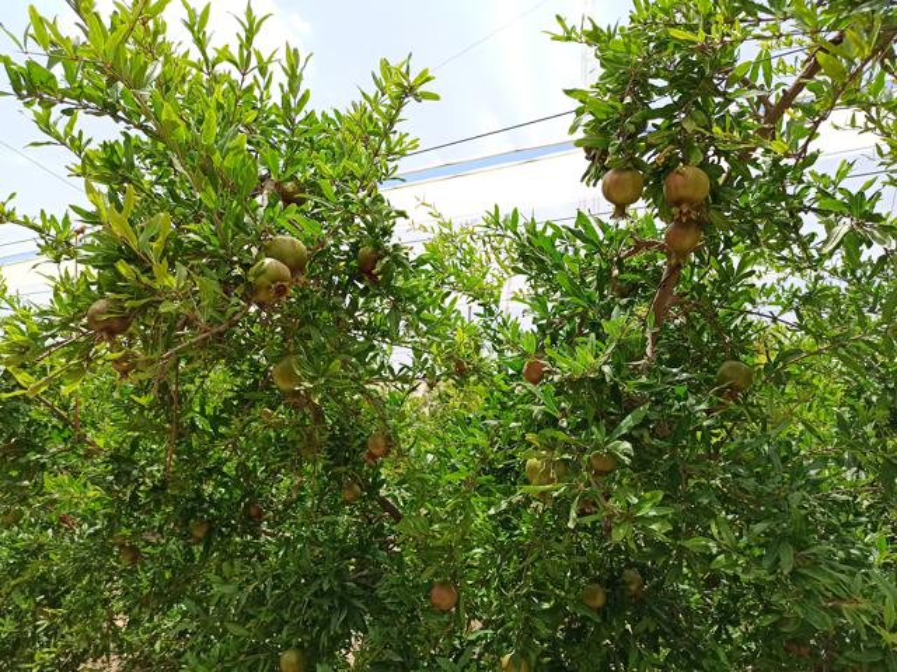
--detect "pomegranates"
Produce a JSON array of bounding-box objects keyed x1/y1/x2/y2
[
  {"x1": 279, "y1": 647, "x2": 318, "y2": 672},
  {"x1": 251, "y1": 258, "x2": 293, "y2": 304},
  {"x1": 263, "y1": 235, "x2": 308, "y2": 284},
  {"x1": 718, "y1": 360, "x2": 754, "y2": 392},
  {"x1": 662, "y1": 221, "x2": 699, "y2": 269},
  {"x1": 662, "y1": 165, "x2": 712, "y2": 221},
  {"x1": 582, "y1": 585, "x2": 607, "y2": 606},
  {"x1": 271, "y1": 357, "x2": 301, "y2": 392},
  {"x1": 589, "y1": 455, "x2": 619, "y2": 470},
  {"x1": 600, "y1": 168, "x2": 643, "y2": 221},
  {"x1": 367, "y1": 431, "x2": 391, "y2": 458},
  {"x1": 85, "y1": 298, "x2": 135, "y2": 342},
  {"x1": 524, "y1": 458, "x2": 566, "y2": 484},
  {"x1": 112, "y1": 350, "x2": 142, "y2": 382},
  {"x1": 278, "y1": 179, "x2": 307, "y2": 209},
  {"x1": 427, "y1": 580, "x2": 460, "y2": 616},
  {"x1": 523, "y1": 360, "x2": 547, "y2": 388},
  {"x1": 356, "y1": 246, "x2": 381, "y2": 270}
]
